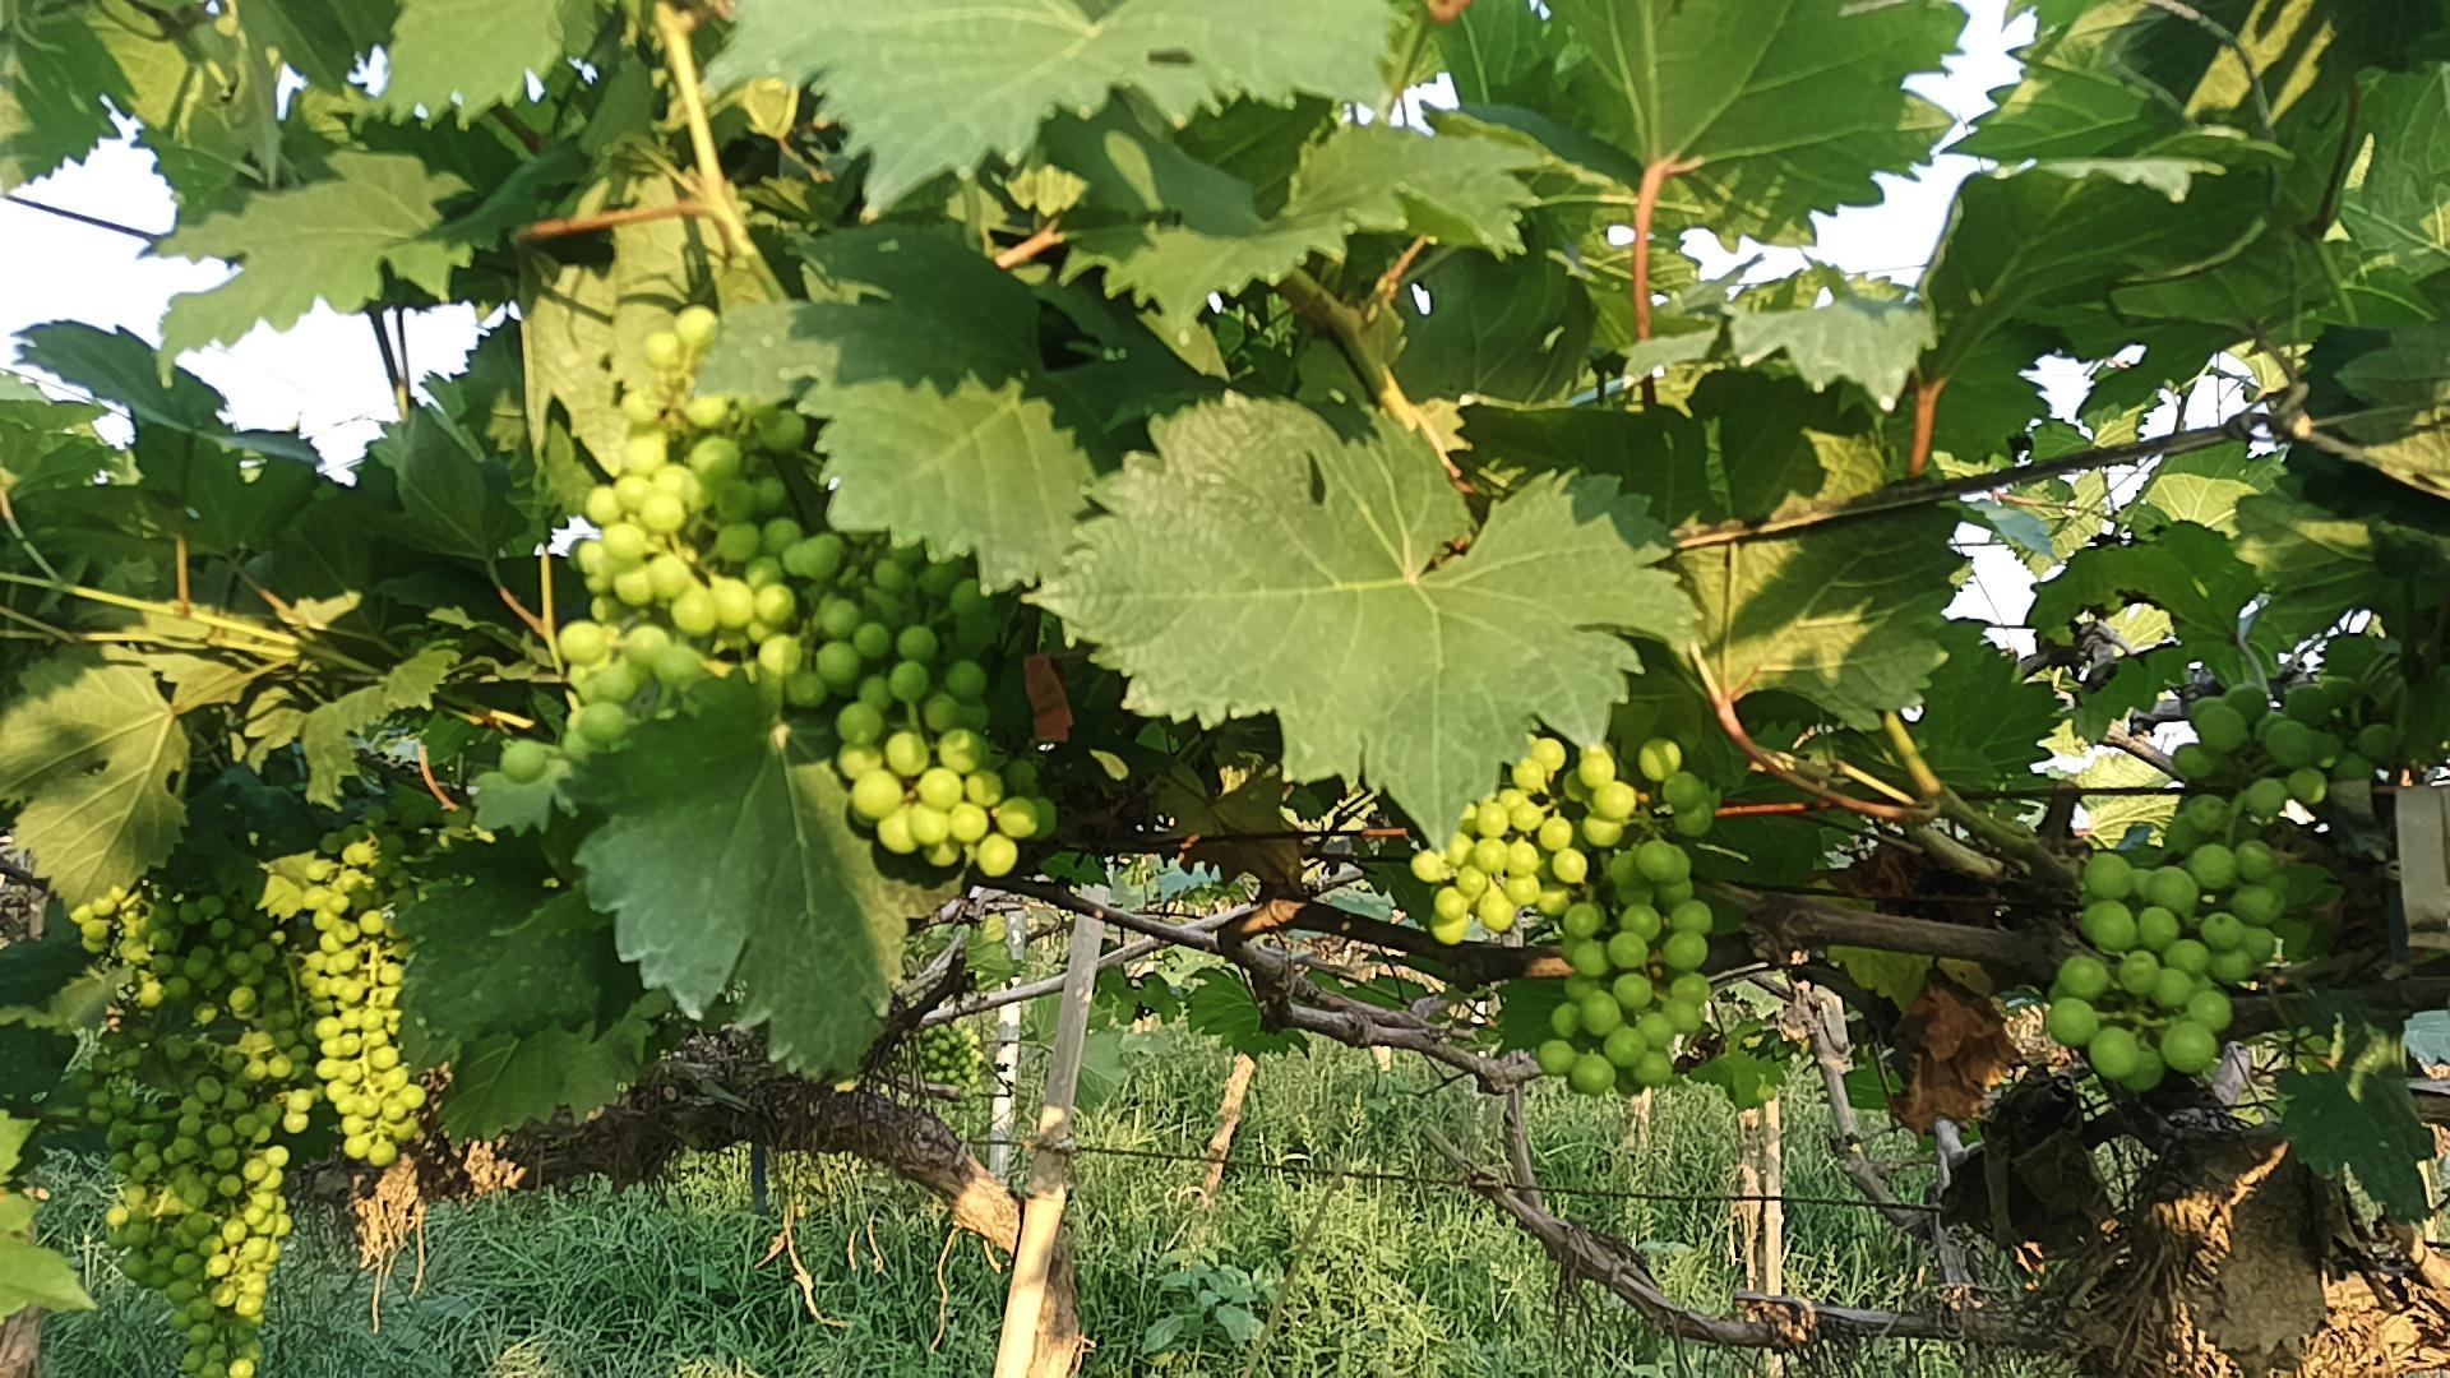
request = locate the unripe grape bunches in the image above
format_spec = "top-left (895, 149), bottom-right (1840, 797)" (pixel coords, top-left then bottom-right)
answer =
top-left (301, 833), bottom-right (426, 1165)
top-left (2049, 675), bottom-right (2393, 1090)
top-left (501, 309), bottom-right (1054, 875)
top-left (1409, 737), bottom-right (1715, 1092)
top-left (78, 884), bottom-right (304, 1377)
